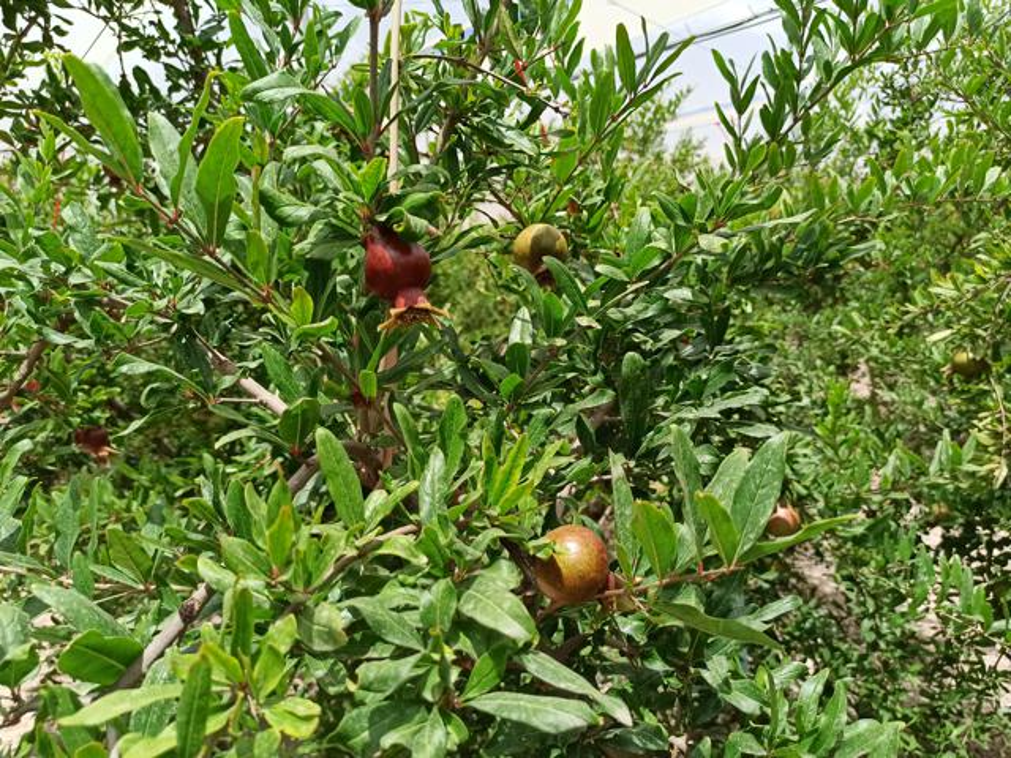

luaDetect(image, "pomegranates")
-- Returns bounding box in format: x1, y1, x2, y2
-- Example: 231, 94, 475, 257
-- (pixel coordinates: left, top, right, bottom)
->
938, 351, 981, 381
532, 523, 622, 605
512, 223, 569, 292
363, 224, 450, 338
768, 504, 802, 537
